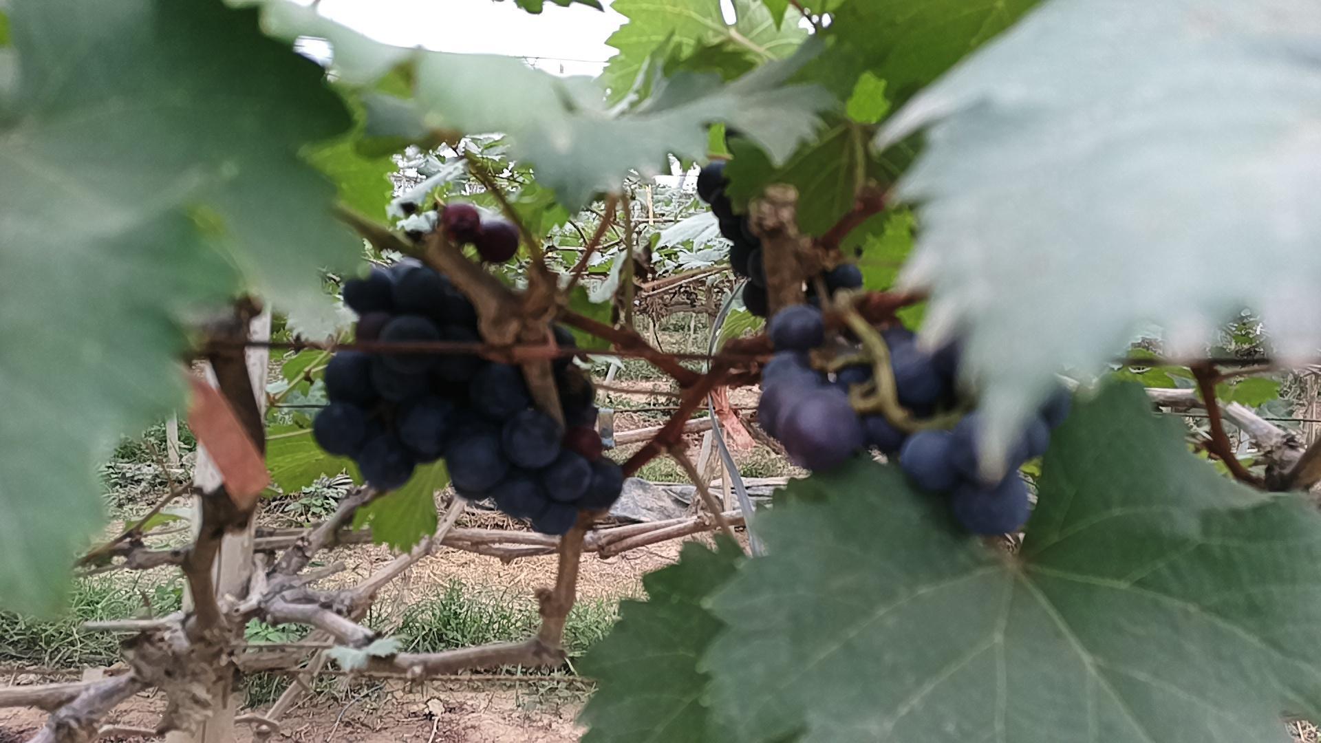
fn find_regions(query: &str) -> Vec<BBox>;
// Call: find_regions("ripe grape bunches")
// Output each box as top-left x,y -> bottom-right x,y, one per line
698,162 -> 1068,535
314,203 -> 628,550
